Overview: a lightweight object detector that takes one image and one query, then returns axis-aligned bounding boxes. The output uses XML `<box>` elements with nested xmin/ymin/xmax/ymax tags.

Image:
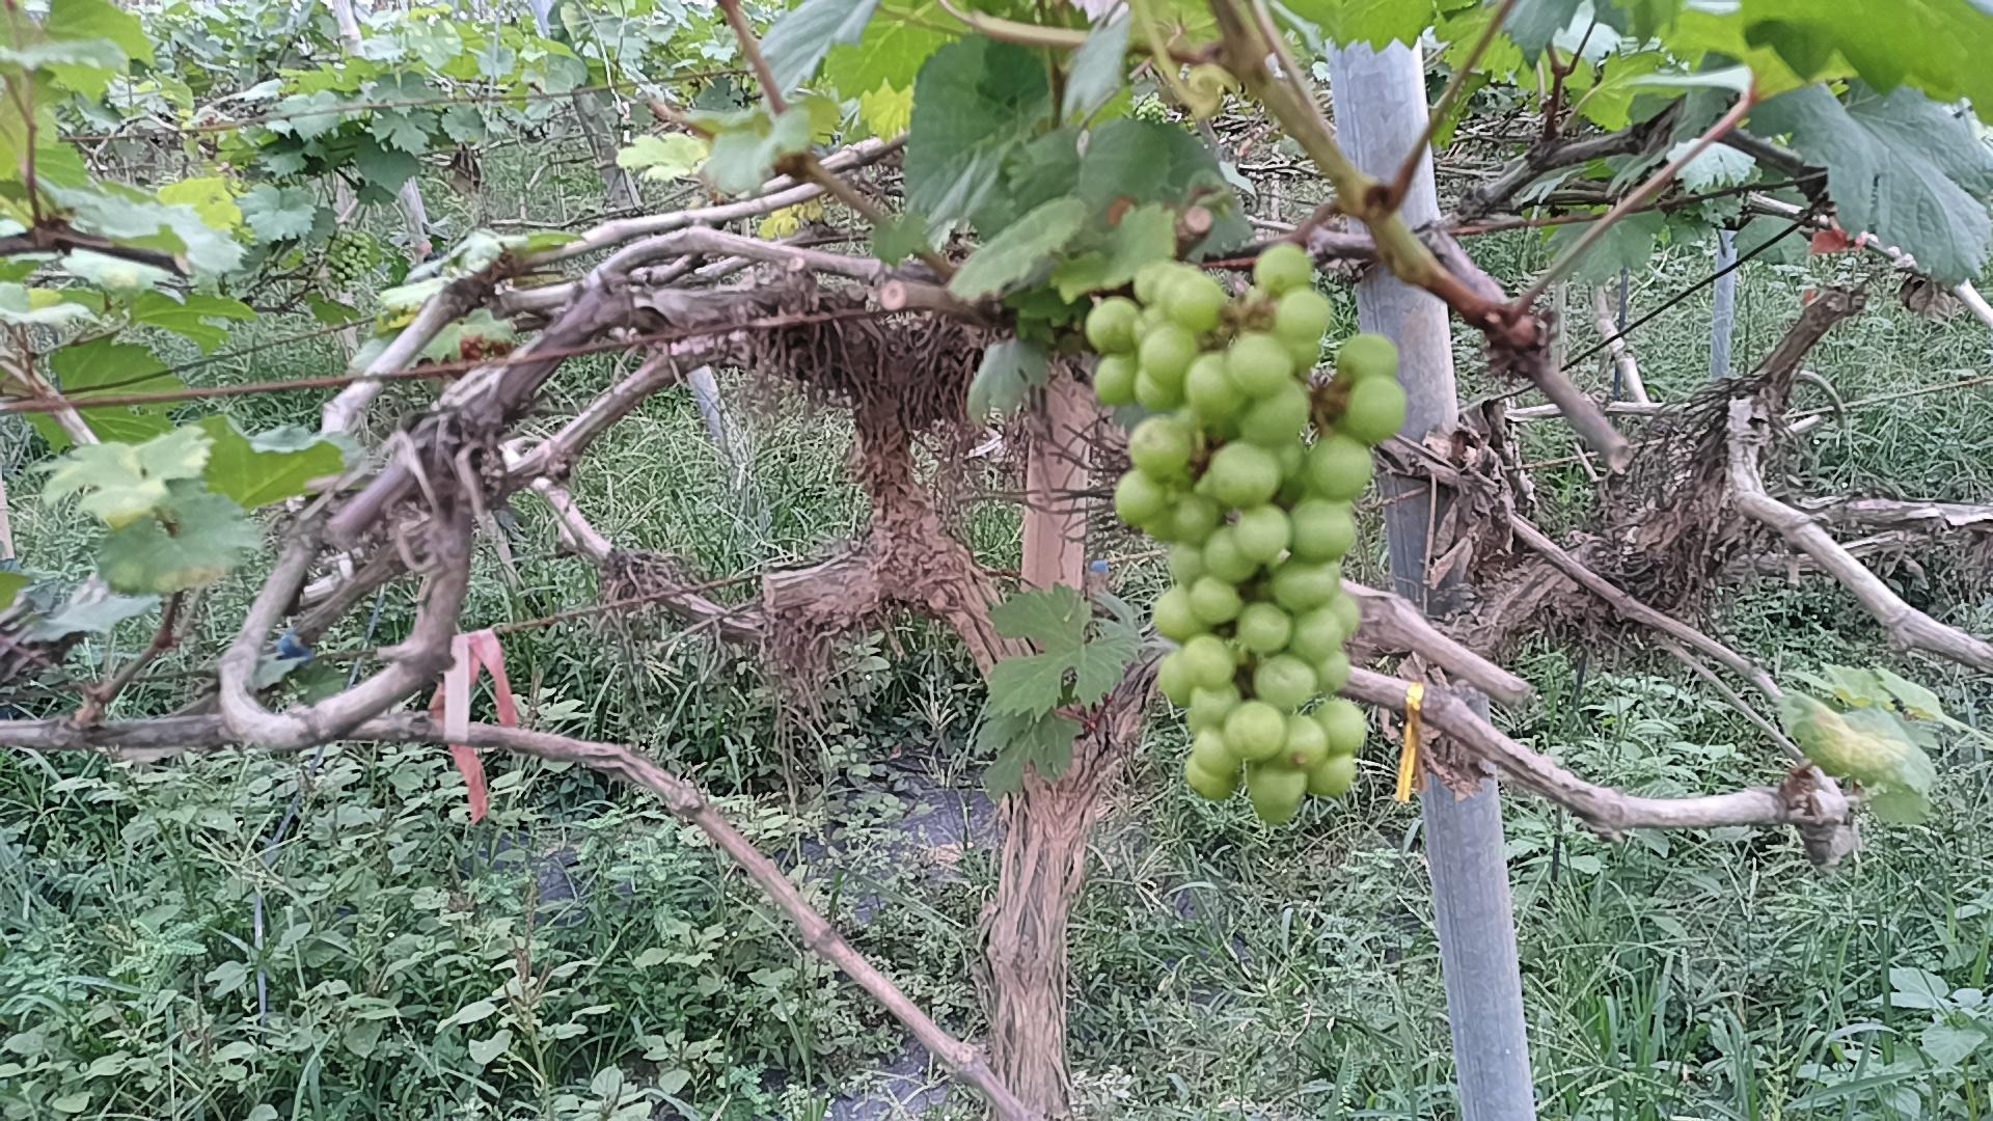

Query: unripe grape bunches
<box><xmin>1086</xmin><ymin>245</ymin><xmax>1405</xmax><ymax>823</ymax></box>
<box><xmin>324</xmin><ymin>226</ymin><xmax>372</xmax><ymax>294</ymax></box>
